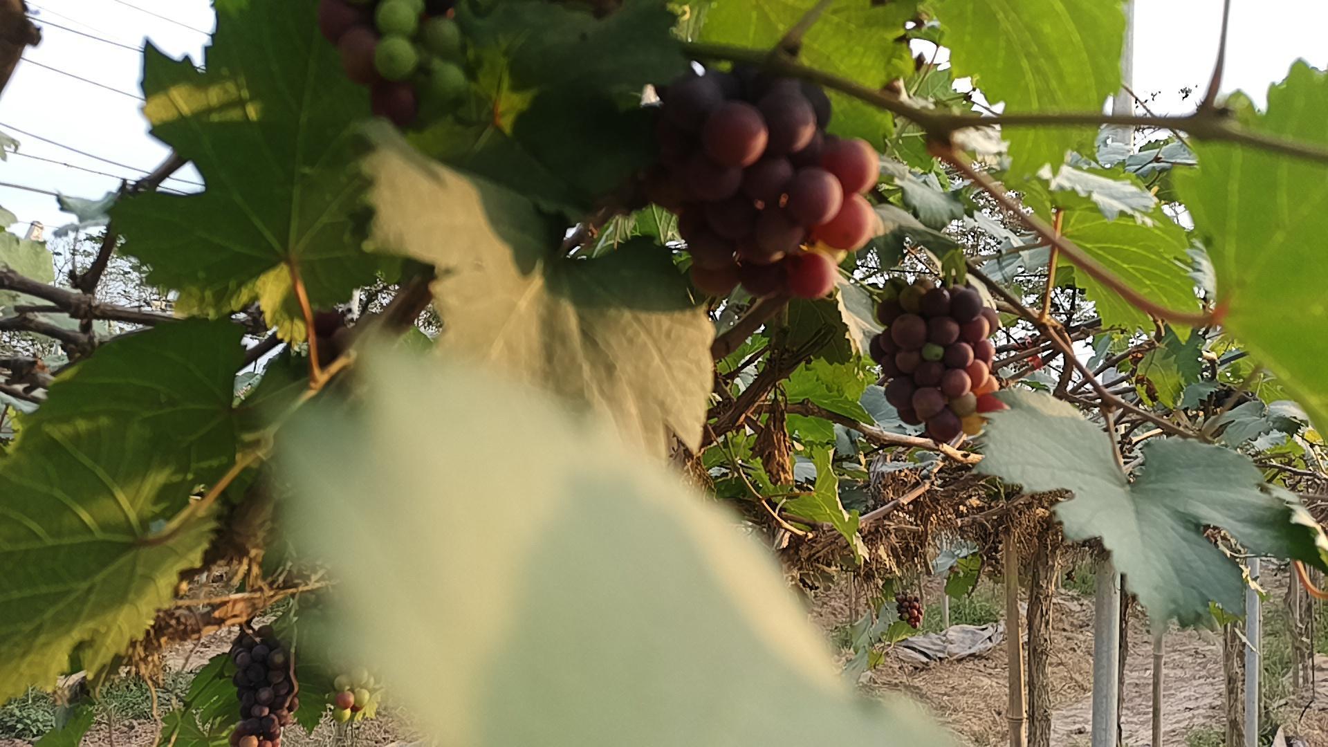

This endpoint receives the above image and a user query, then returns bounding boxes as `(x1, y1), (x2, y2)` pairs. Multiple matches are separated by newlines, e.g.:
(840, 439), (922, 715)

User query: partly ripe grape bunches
(896, 593), (923, 629)
(313, 309), (382, 368)
(332, 669), (379, 723)
(871, 279), (1005, 445)
(319, 0), (462, 127)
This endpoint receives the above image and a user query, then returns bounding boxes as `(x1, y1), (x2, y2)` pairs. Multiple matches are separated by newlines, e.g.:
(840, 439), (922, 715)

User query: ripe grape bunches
(658, 68), (876, 299)
(229, 628), (297, 746)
